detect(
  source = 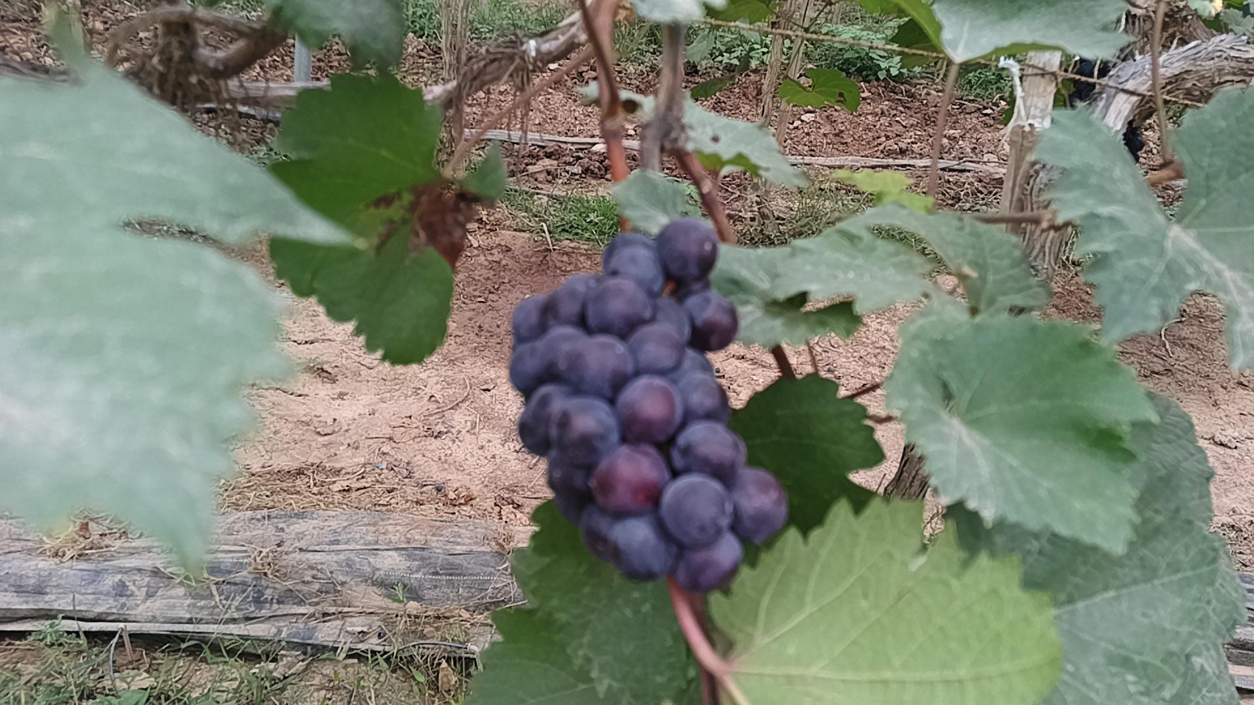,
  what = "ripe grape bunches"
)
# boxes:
[509,217,787,593]
[1063,57,1146,164]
